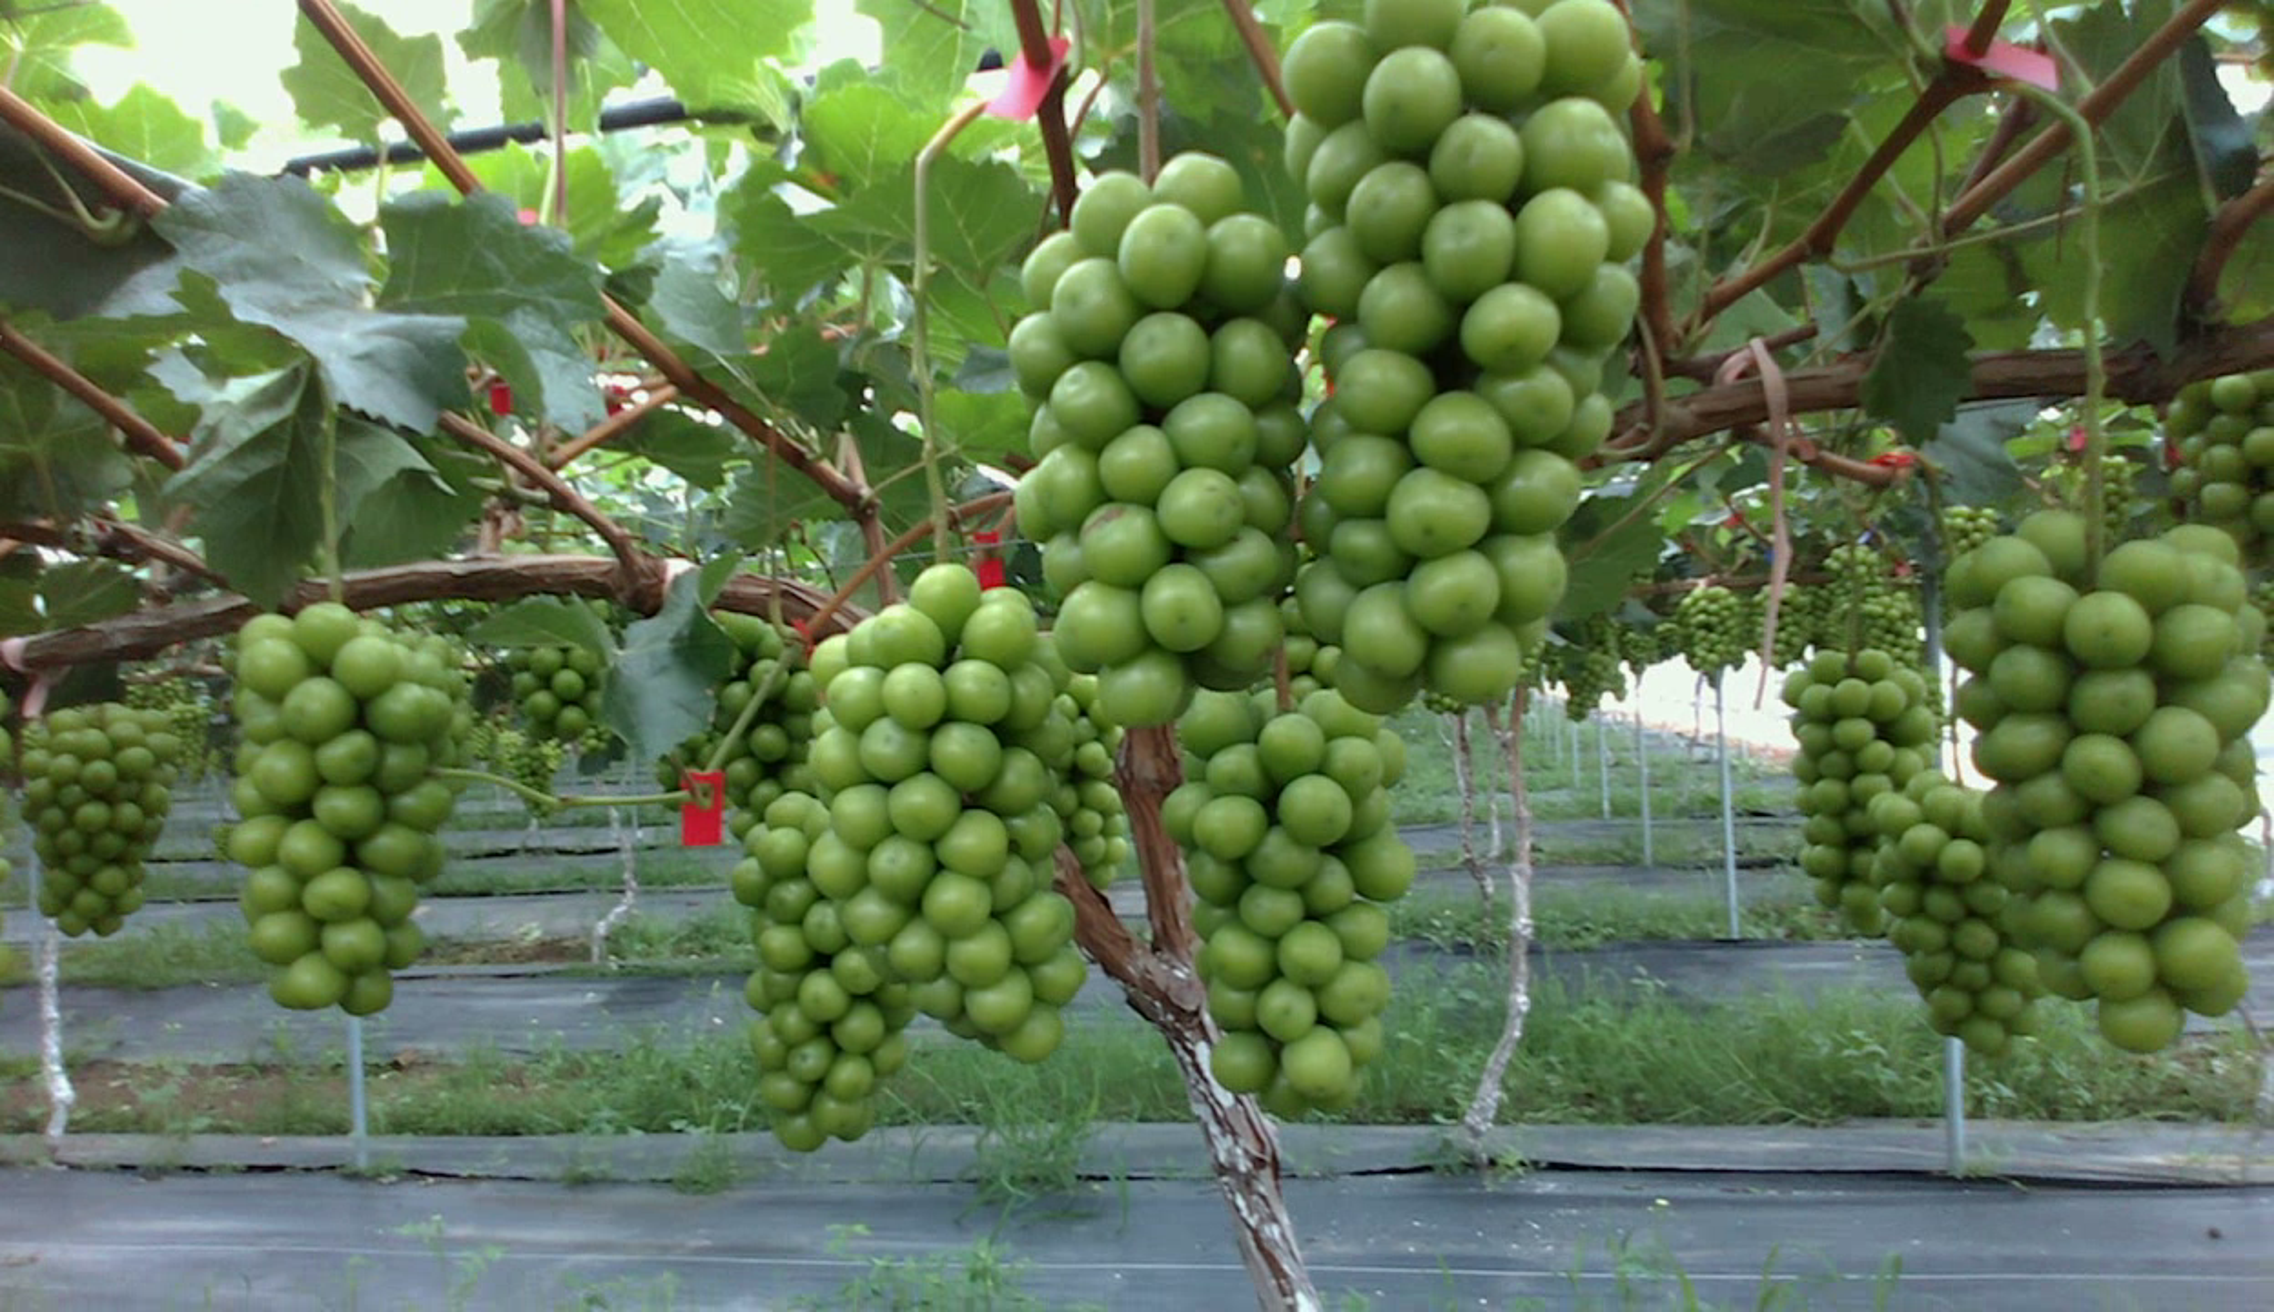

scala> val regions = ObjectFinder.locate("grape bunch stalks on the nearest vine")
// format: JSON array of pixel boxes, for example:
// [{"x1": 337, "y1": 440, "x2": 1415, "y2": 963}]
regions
[
  {"x1": 2006, "y1": 80, "x2": 2106, "y2": 589},
  {"x1": 1137, "y1": 2, "x2": 1159, "y2": 186},
  {"x1": 323, "y1": 419, "x2": 343, "y2": 601},
  {"x1": 907, "y1": 98, "x2": 984, "y2": 563},
  {"x1": 1274, "y1": 645, "x2": 1290, "y2": 712}
]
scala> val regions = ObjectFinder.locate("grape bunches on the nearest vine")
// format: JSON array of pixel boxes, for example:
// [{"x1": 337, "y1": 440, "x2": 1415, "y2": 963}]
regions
[
  {"x1": 1942, "y1": 510, "x2": 2272, "y2": 1055},
  {"x1": 1008, "y1": 153, "x2": 1308, "y2": 734},
  {"x1": 729, "y1": 791, "x2": 913, "y2": 1153},
  {"x1": 805, "y1": 561, "x2": 1088, "y2": 1064},
  {"x1": 228, "y1": 603, "x2": 454, "y2": 1017},
  {"x1": 1281, "y1": 0, "x2": 1656, "y2": 716},
  {"x1": 1161, "y1": 689, "x2": 1414, "y2": 1121}
]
